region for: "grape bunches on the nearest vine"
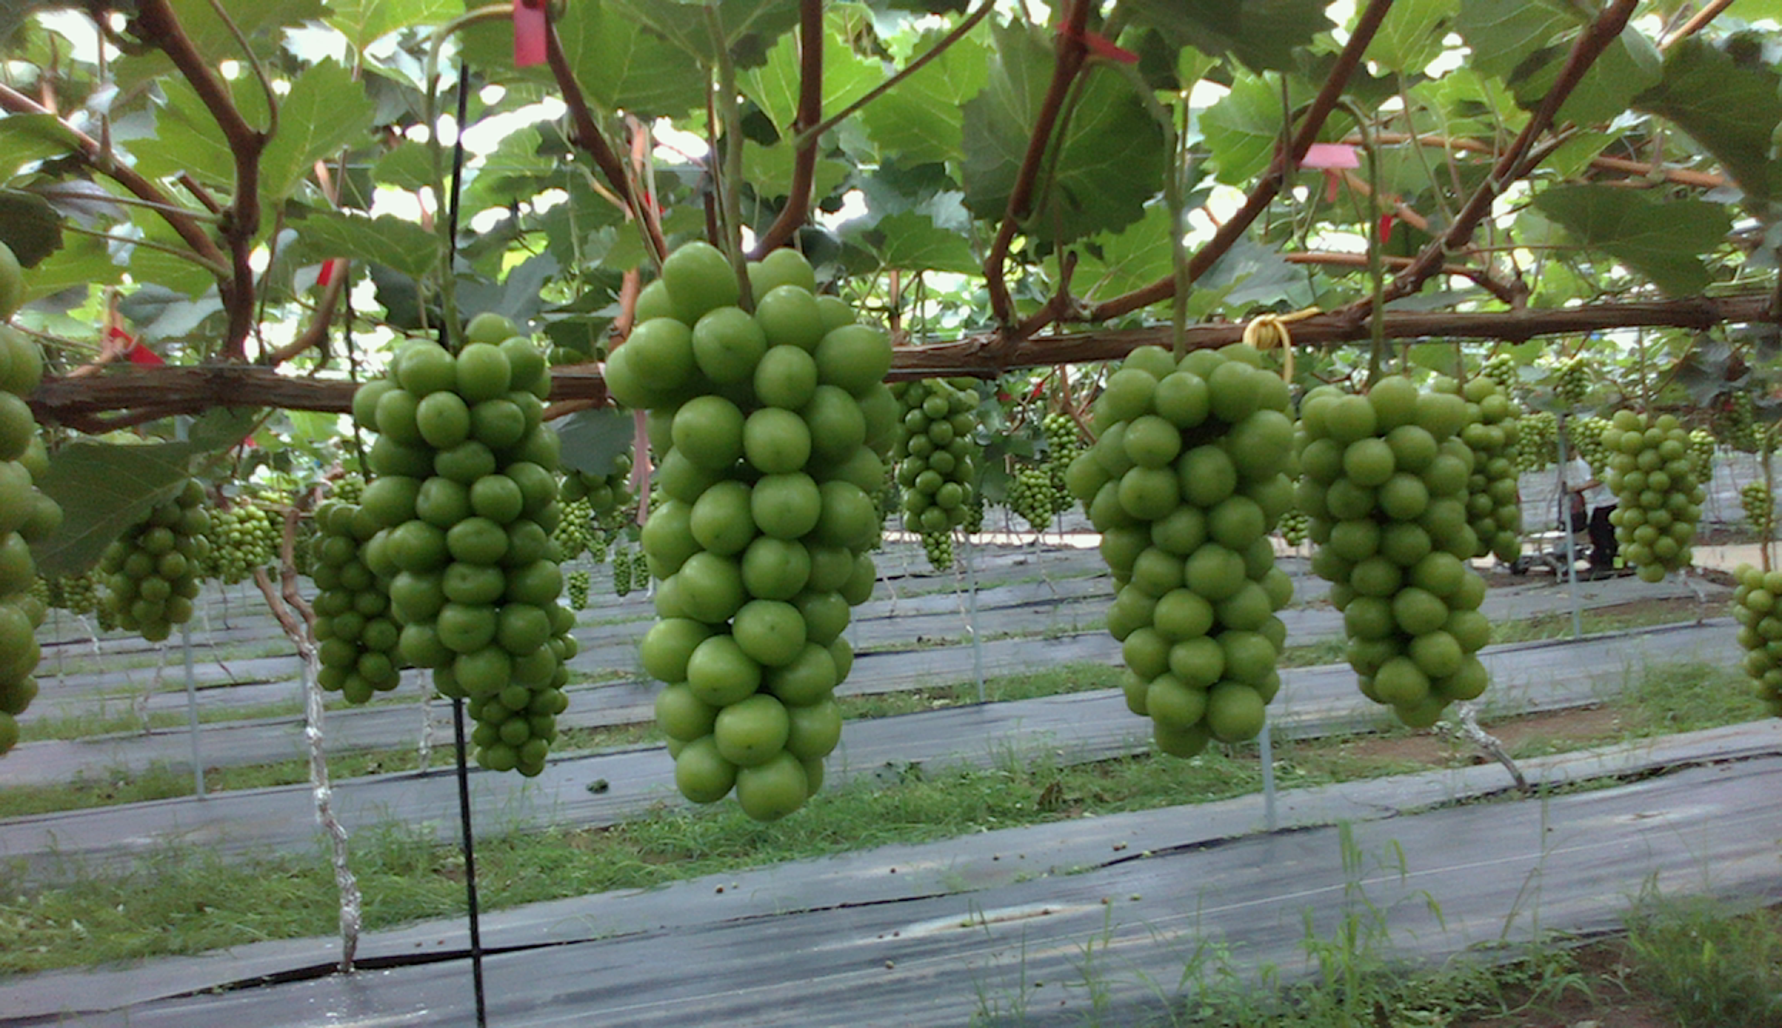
[1297,376,1492,728]
[353,310,560,701]
[1067,341,1295,758]
[605,240,898,821]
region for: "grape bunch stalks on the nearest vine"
[424,3,510,356]
[1338,97,1381,385]
[703,0,755,310]
[1095,59,1189,363]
